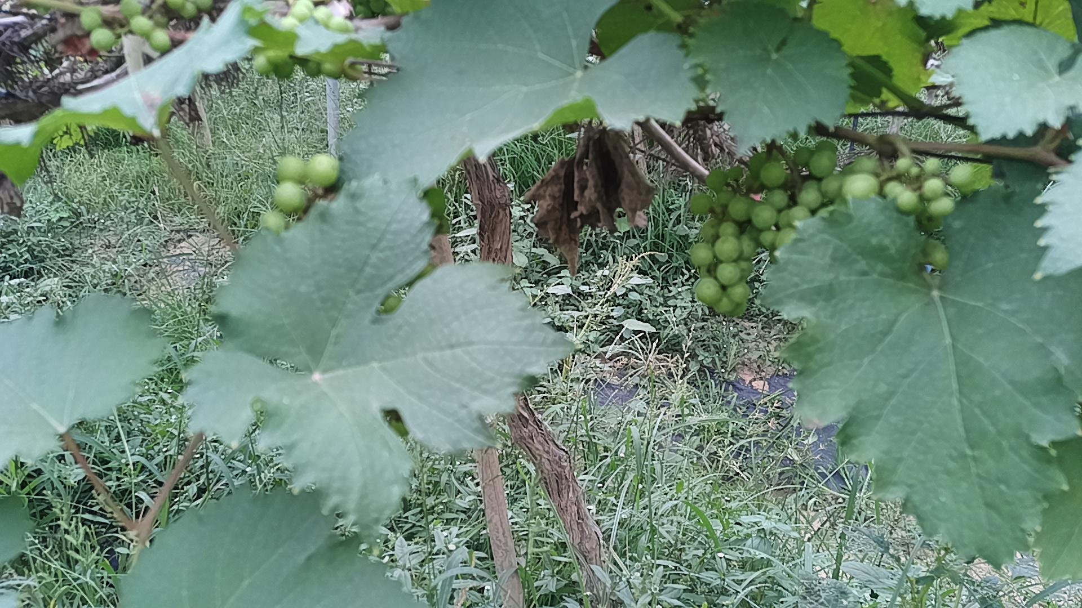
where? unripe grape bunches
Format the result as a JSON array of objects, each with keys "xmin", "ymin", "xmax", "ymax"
[
  {"xmin": 260, "ymin": 153, "xmax": 339, "ymax": 233},
  {"xmin": 690, "ymin": 136, "xmax": 993, "ymax": 314},
  {"xmin": 244, "ymin": 0, "xmax": 356, "ymax": 78},
  {"xmin": 81, "ymin": 0, "xmax": 212, "ymax": 53}
]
